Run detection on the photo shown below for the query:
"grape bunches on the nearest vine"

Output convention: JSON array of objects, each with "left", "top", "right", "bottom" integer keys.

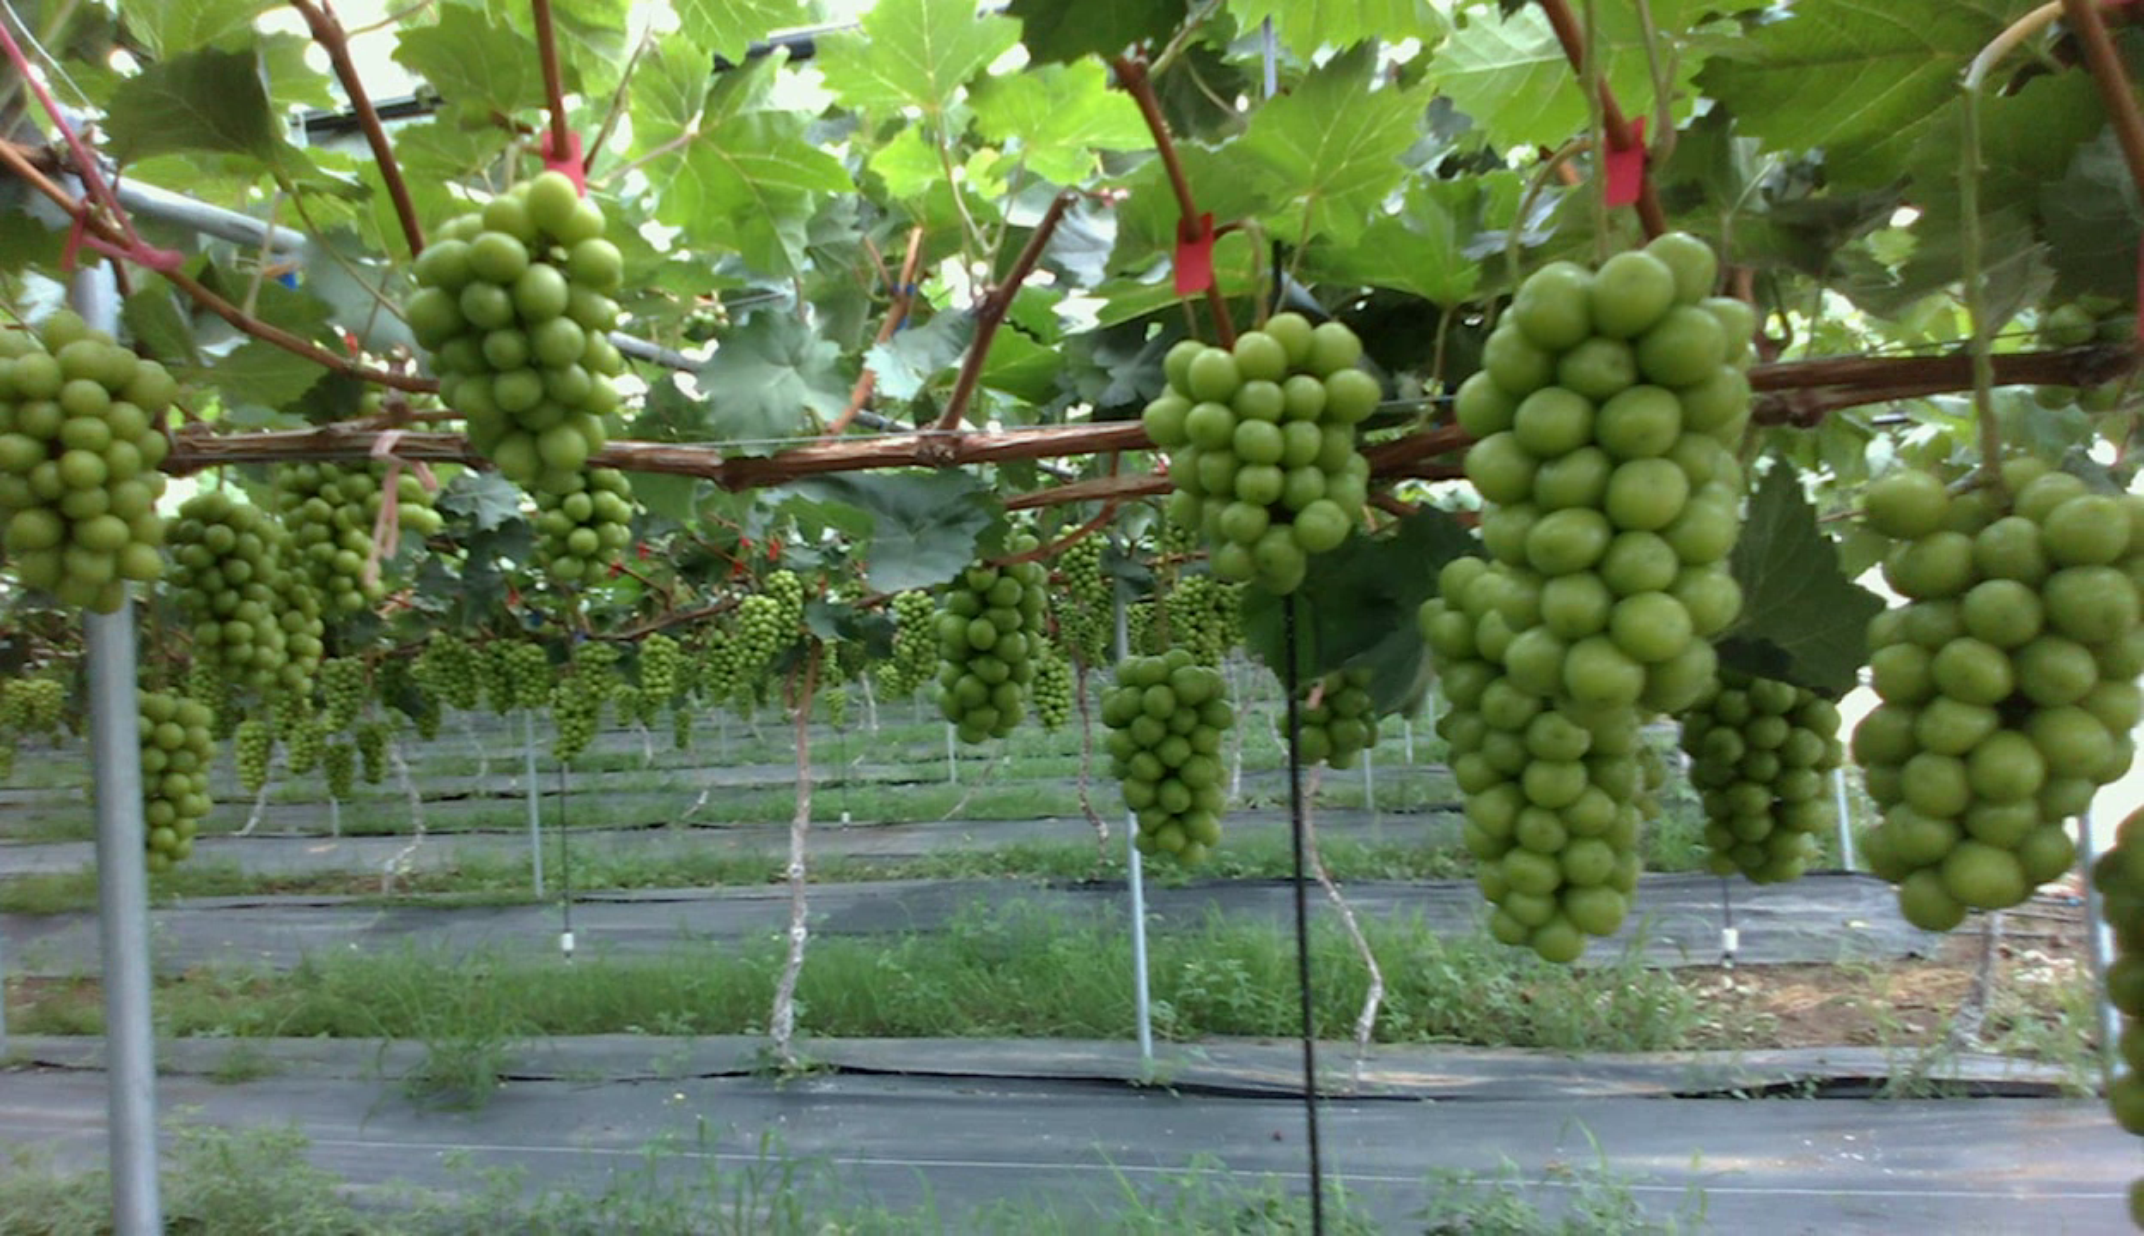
[
  {"left": 1142, "top": 309, "right": 1383, "bottom": 596},
  {"left": 1453, "top": 230, "right": 1756, "bottom": 728},
  {"left": 402, "top": 172, "right": 627, "bottom": 494},
  {"left": 1419, "top": 558, "right": 1635, "bottom": 965},
  {"left": 0, "top": 309, "right": 174, "bottom": 613},
  {"left": 1852, "top": 458, "right": 2142, "bottom": 932},
  {"left": 2101, "top": 807, "right": 2142, "bottom": 1136}
]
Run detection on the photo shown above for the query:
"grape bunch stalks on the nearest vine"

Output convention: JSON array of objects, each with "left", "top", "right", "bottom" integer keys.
[
  {"left": 1582, "top": 0, "right": 1608, "bottom": 264},
  {"left": 1215, "top": 216, "right": 1268, "bottom": 330},
  {"left": 502, "top": 136, "right": 529, "bottom": 185},
  {"left": 64, "top": 256, "right": 77, "bottom": 306},
  {"left": 1958, "top": 2, "right": 2065, "bottom": 513}
]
